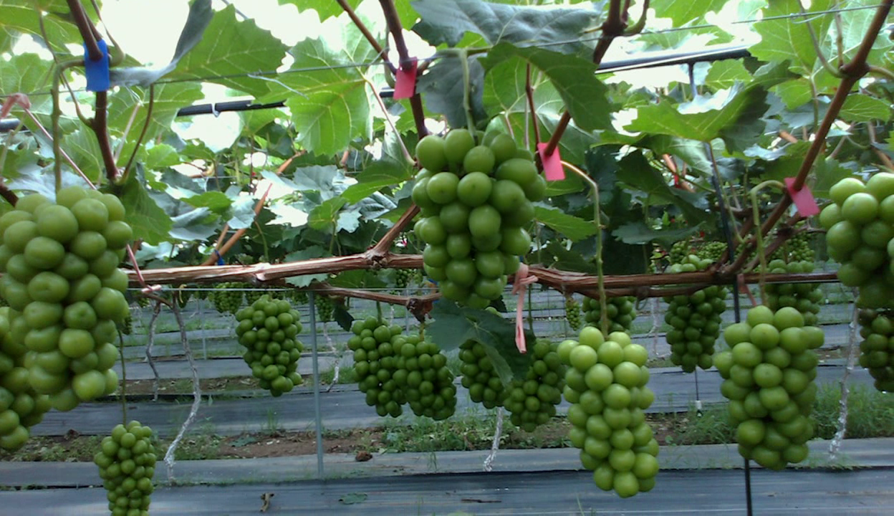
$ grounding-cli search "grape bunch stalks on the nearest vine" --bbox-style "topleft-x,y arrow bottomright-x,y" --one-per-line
561,161 -> 608,341
435,49 -> 478,145
751,180 -> 784,310
50,59 -> 85,194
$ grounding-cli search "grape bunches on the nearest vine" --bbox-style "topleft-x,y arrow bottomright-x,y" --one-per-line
819,172 -> 893,310
1,186 -> 133,412
712,305 -> 826,472
411,129 -> 547,310
557,326 -> 659,498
